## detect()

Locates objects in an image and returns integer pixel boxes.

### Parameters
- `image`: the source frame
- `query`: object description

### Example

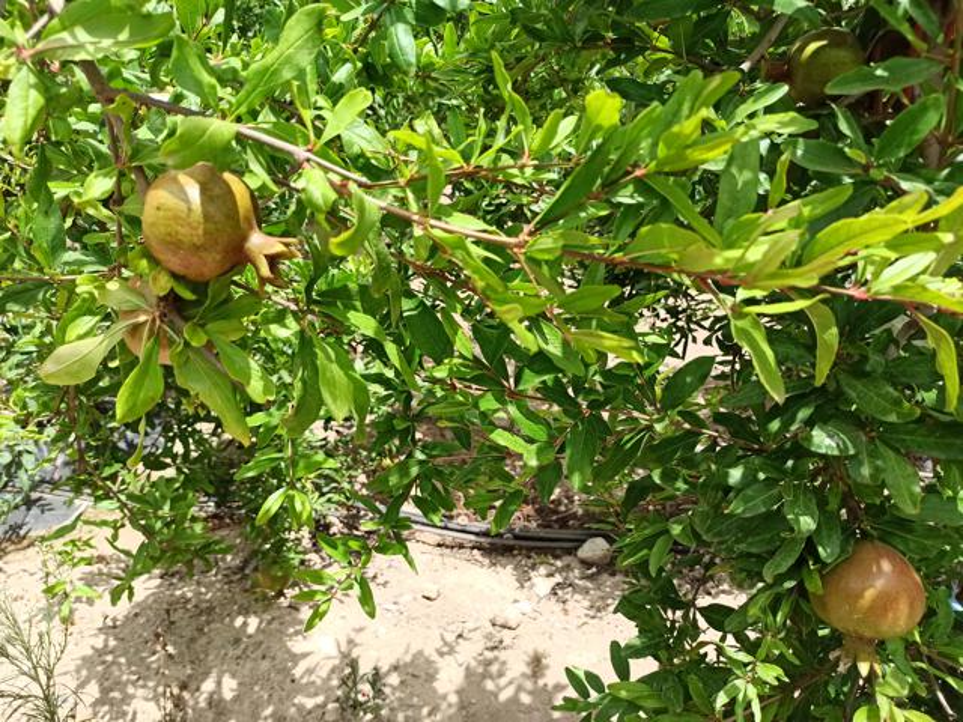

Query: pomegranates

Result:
[117,272,172,364]
[761,26,867,104]
[259,569,292,600]
[141,159,304,293]
[808,538,927,680]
